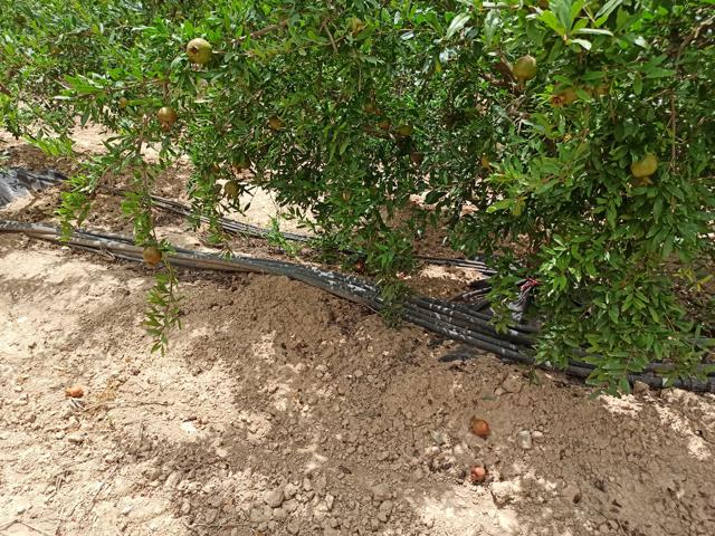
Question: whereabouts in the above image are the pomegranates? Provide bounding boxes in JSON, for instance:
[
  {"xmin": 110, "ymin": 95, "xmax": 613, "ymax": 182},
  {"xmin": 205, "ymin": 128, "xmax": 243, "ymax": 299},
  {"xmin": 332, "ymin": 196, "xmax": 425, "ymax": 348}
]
[
  {"xmin": 143, "ymin": 245, "xmax": 163, "ymax": 268},
  {"xmin": 268, "ymin": 117, "xmax": 285, "ymax": 131},
  {"xmin": 185, "ymin": 37, "xmax": 211, "ymax": 64},
  {"xmin": 549, "ymin": 86, "xmax": 578, "ymax": 108},
  {"xmin": 513, "ymin": 54, "xmax": 537, "ymax": 92},
  {"xmin": 379, "ymin": 121, "xmax": 390, "ymax": 131},
  {"xmin": 236, "ymin": 159, "xmax": 251, "ymax": 173},
  {"xmin": 158, "ymin": 106, "xmax": 178, "ymax": 131},
  {"xmin": 399, "ymin": 124, "xmax": 412, "ymax": 136},
  {"xmin": 355, "ymin": 18, "xmax": 364, "ymax": 30},
  {"xmin": 630, "ymin": 155, "xmax": 657, "ymax": 186},
  {"xmin": 225, "ymin": 180, "xmax": 239, "ymax": 200}
]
